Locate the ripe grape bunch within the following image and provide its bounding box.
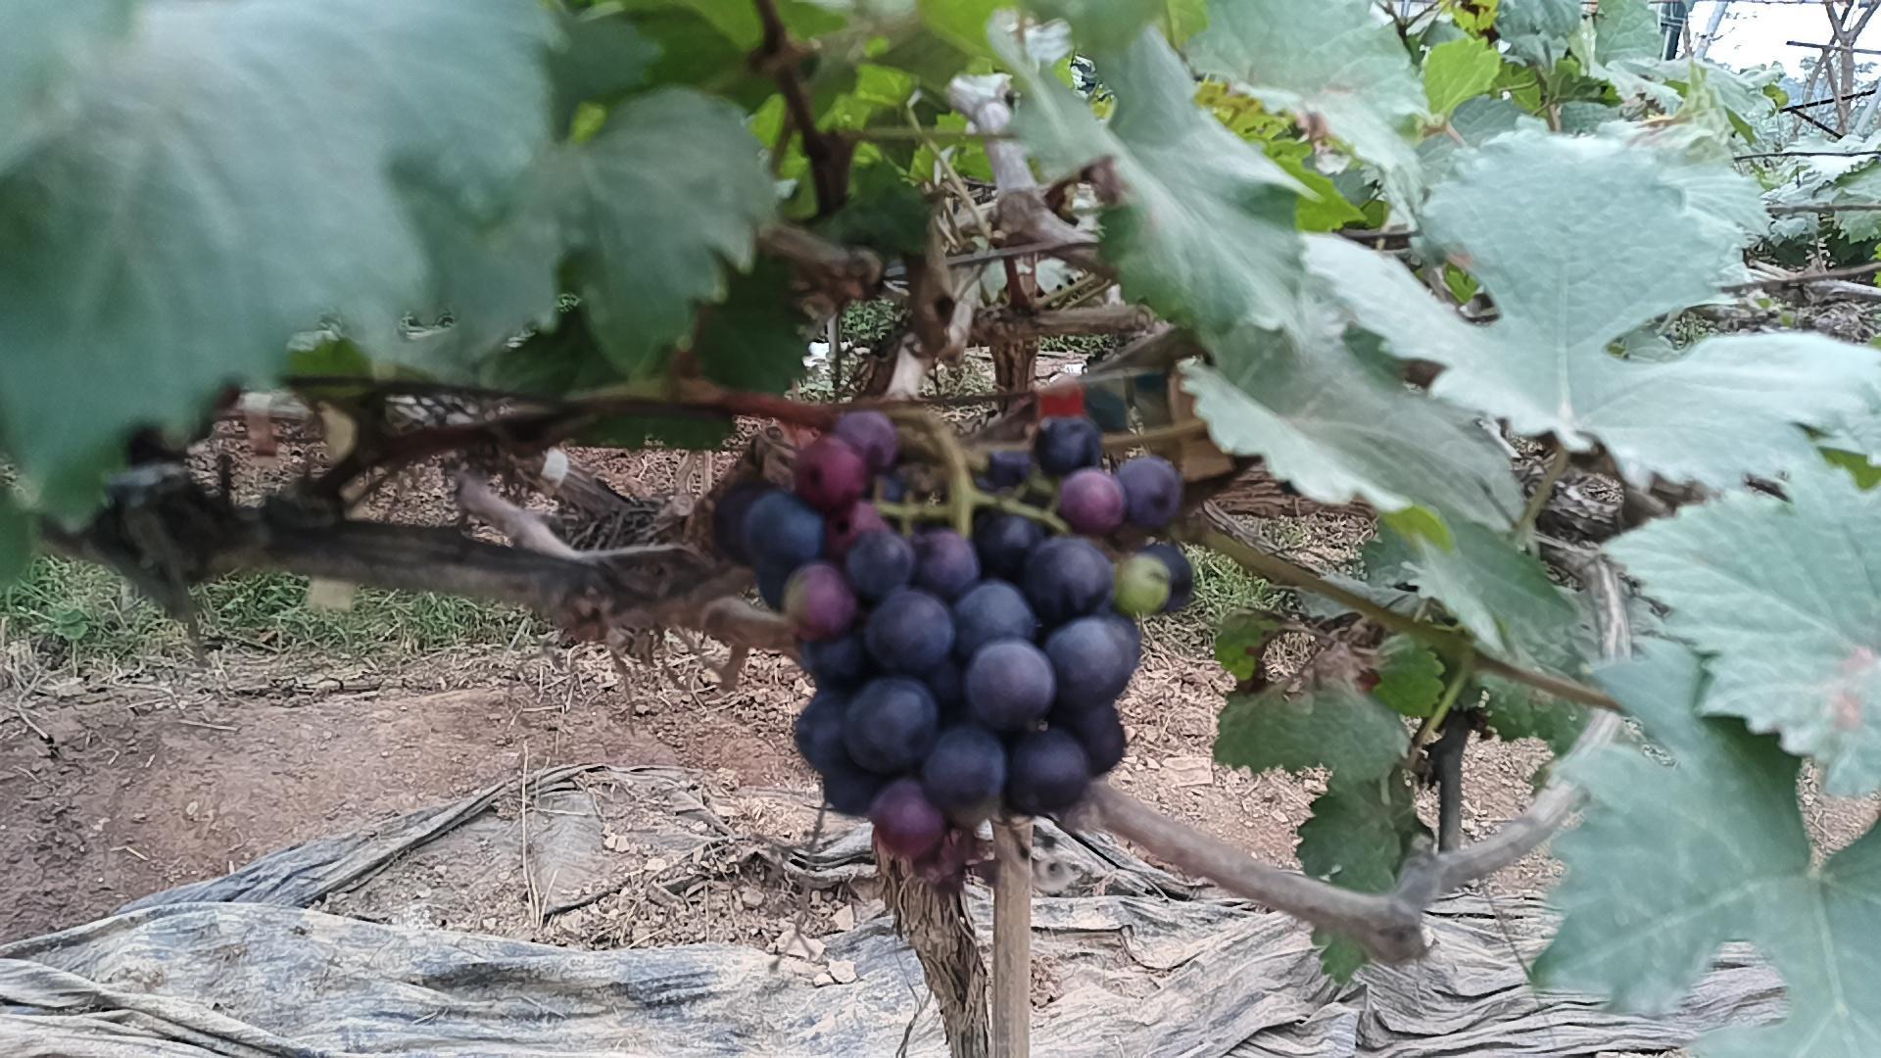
[740,410,1191,858]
